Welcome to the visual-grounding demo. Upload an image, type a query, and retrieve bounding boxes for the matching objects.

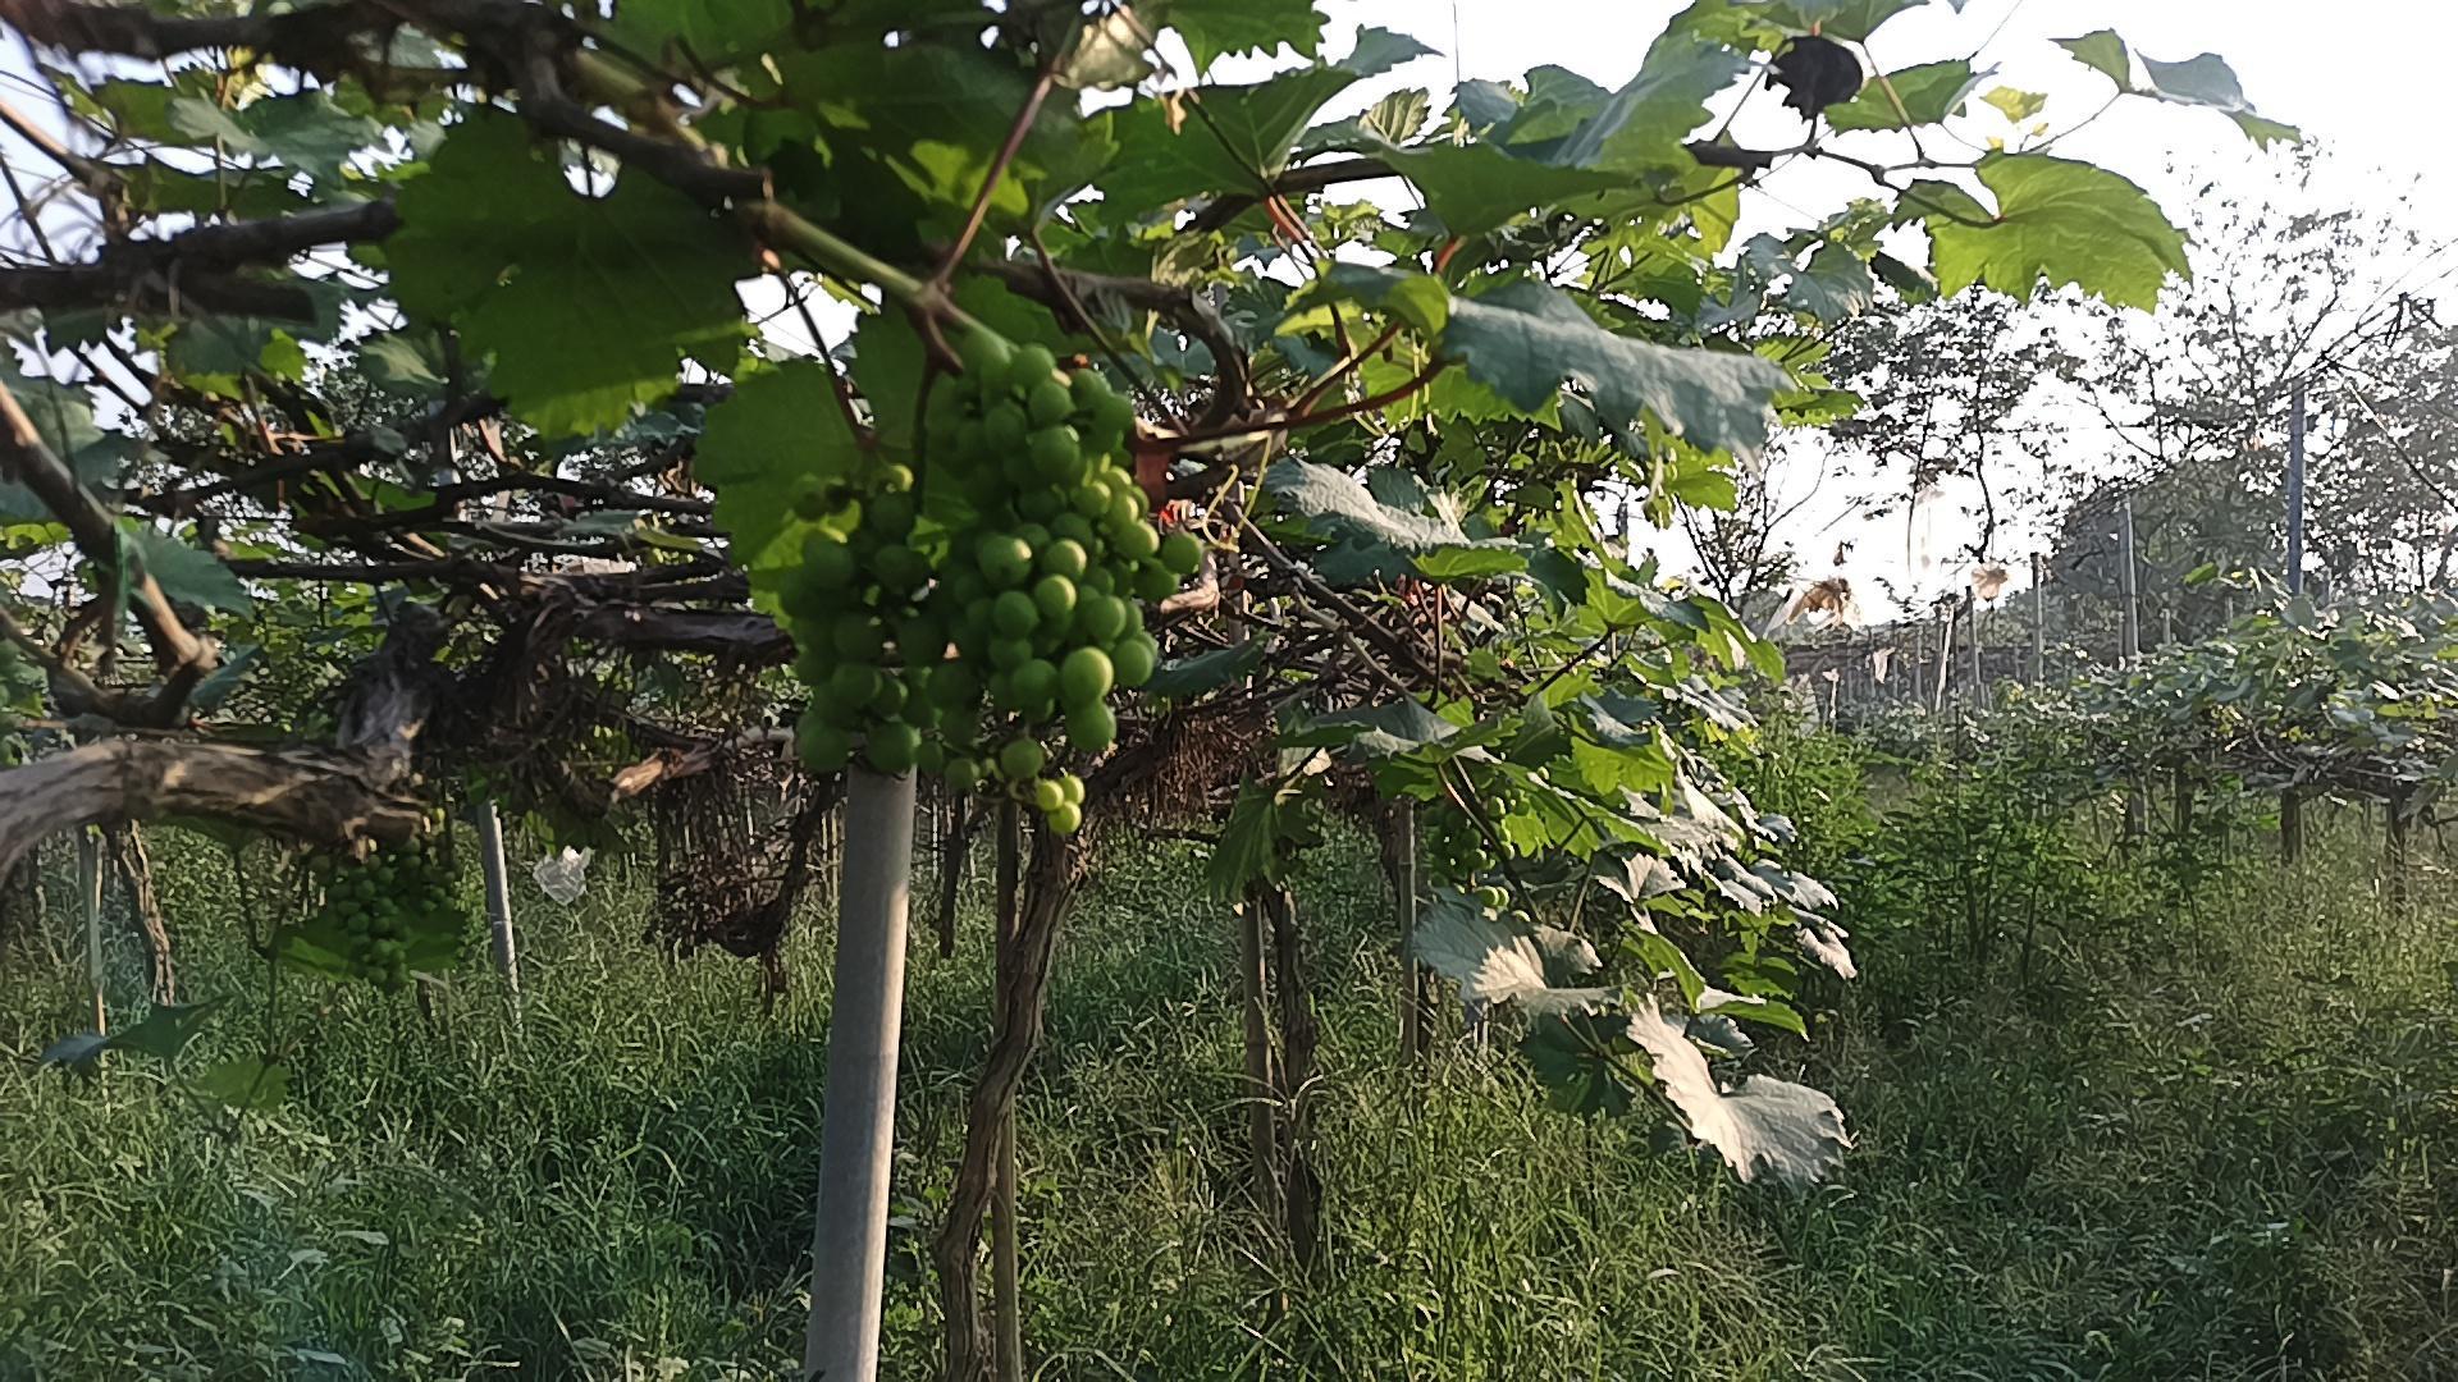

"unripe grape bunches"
[923,335,1203,832]
[780,466,945,773]
[325,848,457,992]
